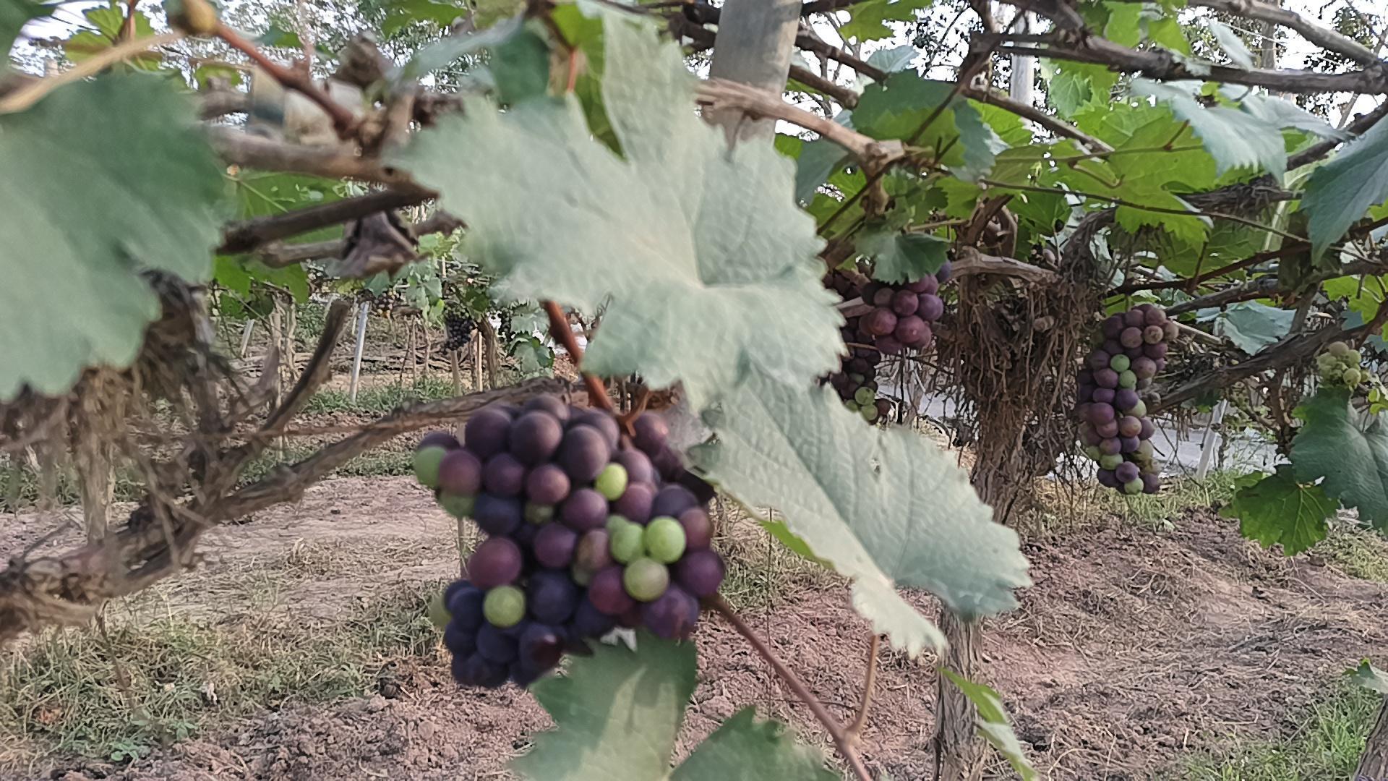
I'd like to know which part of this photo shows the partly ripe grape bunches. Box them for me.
[823,234,951,422]
[1073,304,1178,493]
[414,394,724,686]
[356,273,405,316]
[442,302,478,350]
